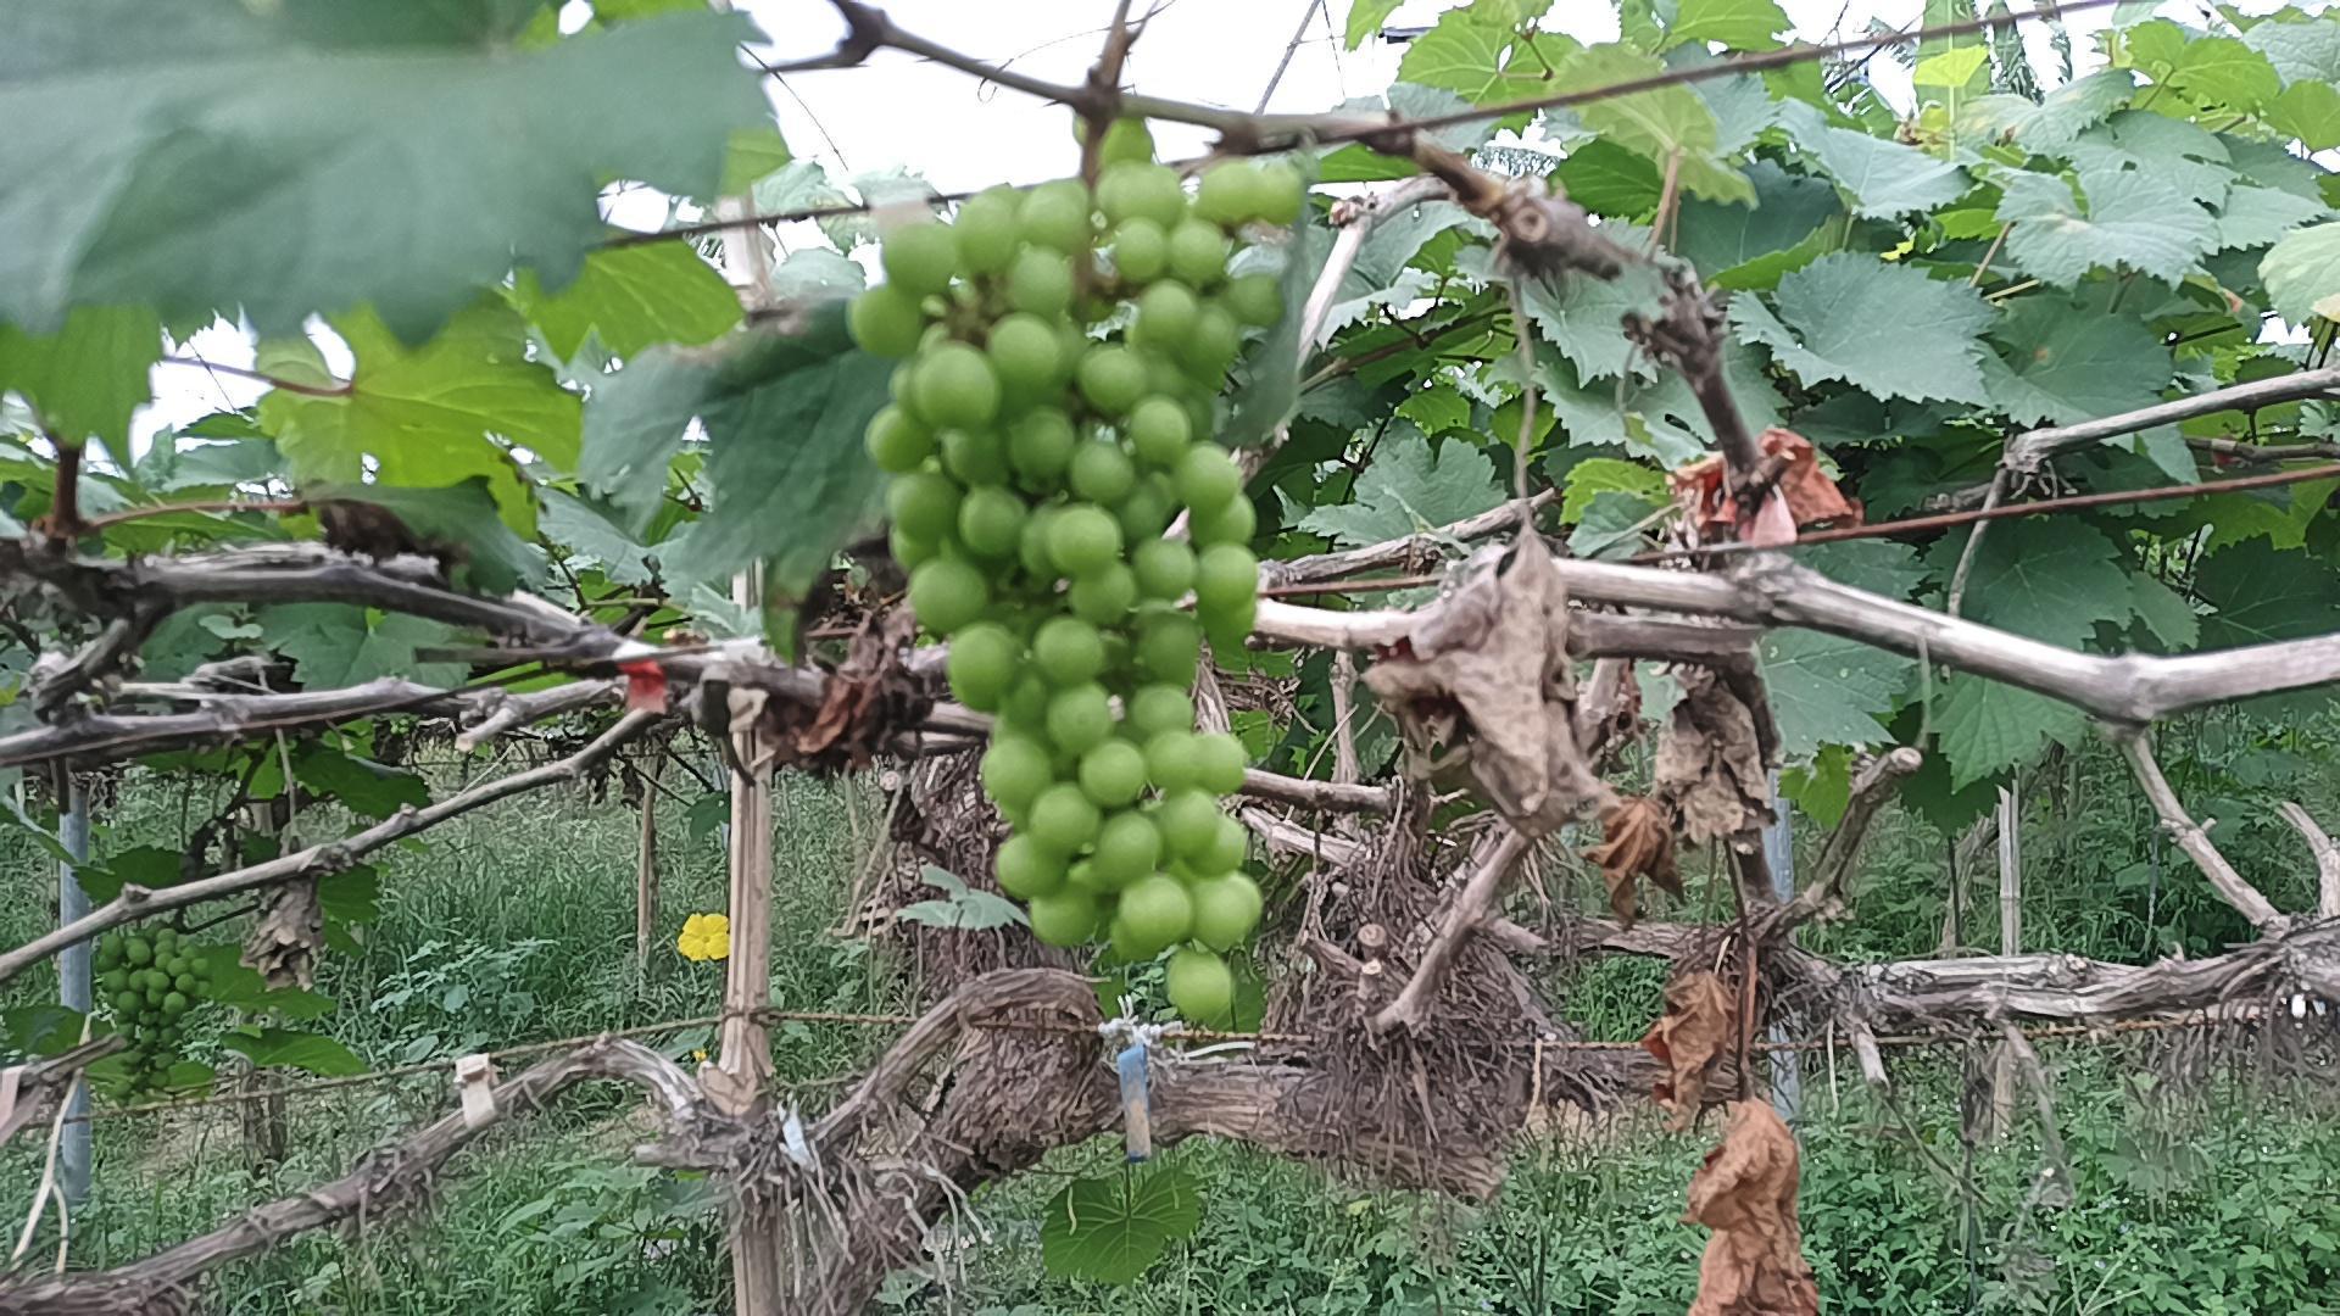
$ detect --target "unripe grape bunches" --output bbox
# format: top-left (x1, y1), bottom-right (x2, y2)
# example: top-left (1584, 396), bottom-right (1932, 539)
top-left (95, 924), bottom-right (211, 1106)
top-left (129, 1109), bottom-right (145, 1113)
top-left (849, 123), bottom-right (1304, 1026)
